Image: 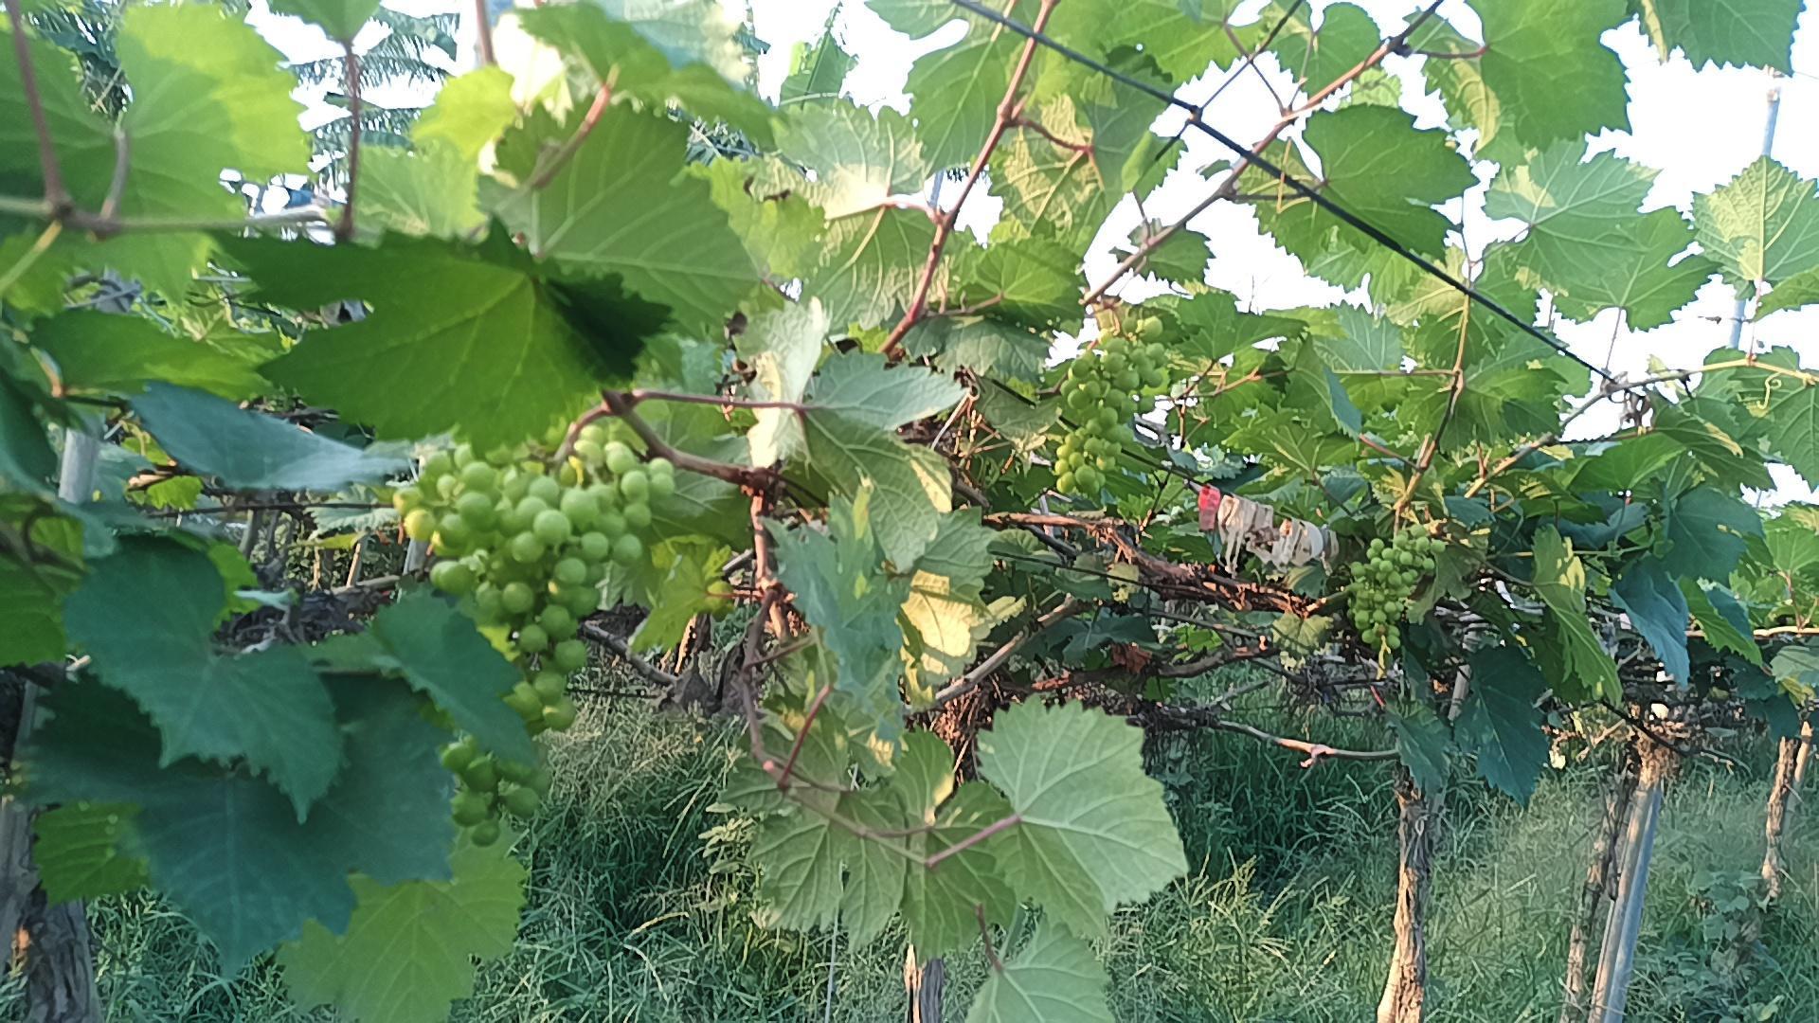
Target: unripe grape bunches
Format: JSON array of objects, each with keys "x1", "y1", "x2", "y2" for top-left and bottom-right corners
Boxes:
[
  {"x1": 1346, "y1": 524, "x2": 1449, "y2": 668},
  {"x1": 442, "y1": 737, "x2": 543, "y2": 841},
  {"x1": 396, "y1": 439, "x2": 674, "y2": 735},
  {"x1": 1054, "y1": 315, "x2": 1174, "y2": 498}
]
